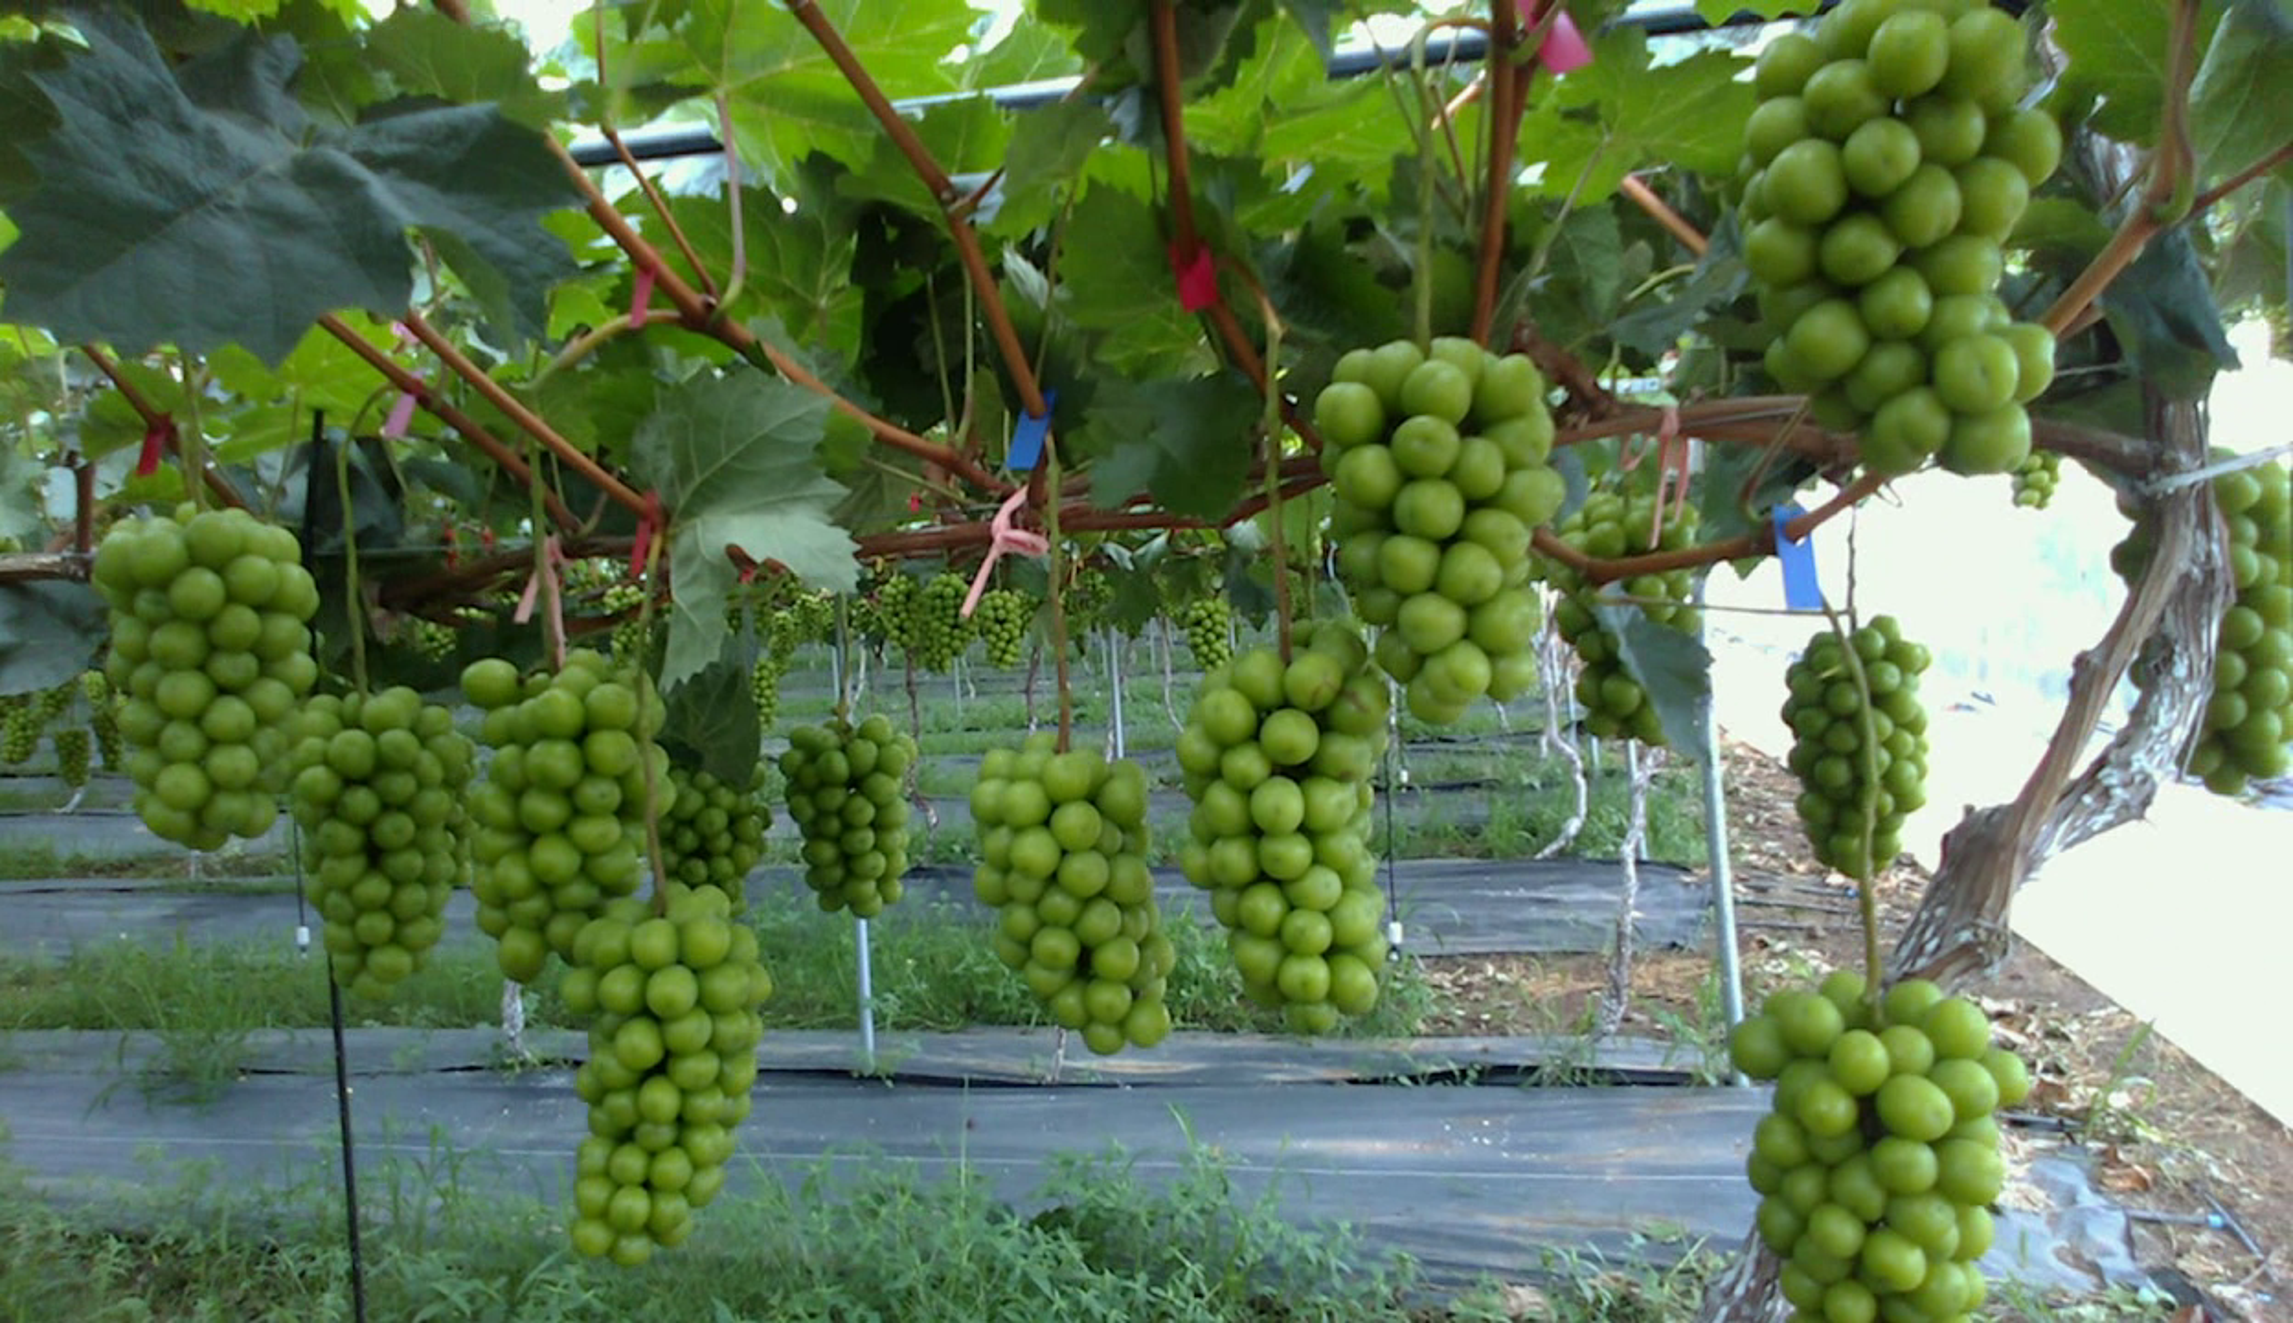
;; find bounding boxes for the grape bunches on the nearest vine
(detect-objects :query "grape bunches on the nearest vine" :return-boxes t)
[1316,336,1567,728]
[1176,621,1391,1040]
[968,733,1174,1051]
[457,650,643,985]
[288,685,465,1003]
[92,503,320,851]
[1736,0,2061,478]
[564,884,774,1270]
[1722,968,2028,1319]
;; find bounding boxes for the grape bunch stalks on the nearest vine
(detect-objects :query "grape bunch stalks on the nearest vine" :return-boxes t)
[630,533,667,913]
[1409,15,1492,356]
[338,382,399,704]
[1218,252,1292,665]
[182,356,206,511]
[1045,434,1071,752]
[1823,597,1883,1029]
[525,437,559,674]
